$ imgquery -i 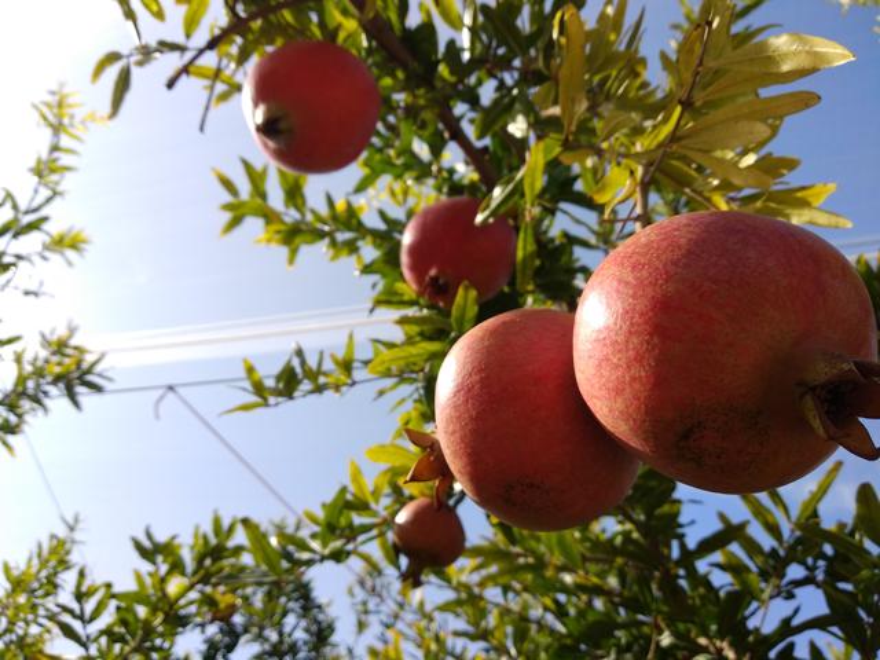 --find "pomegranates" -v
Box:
[241,38,384,173]
[400,195,518,311]
[571,209,880,495]
[401,308,641,535]
[393,496,465,587]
